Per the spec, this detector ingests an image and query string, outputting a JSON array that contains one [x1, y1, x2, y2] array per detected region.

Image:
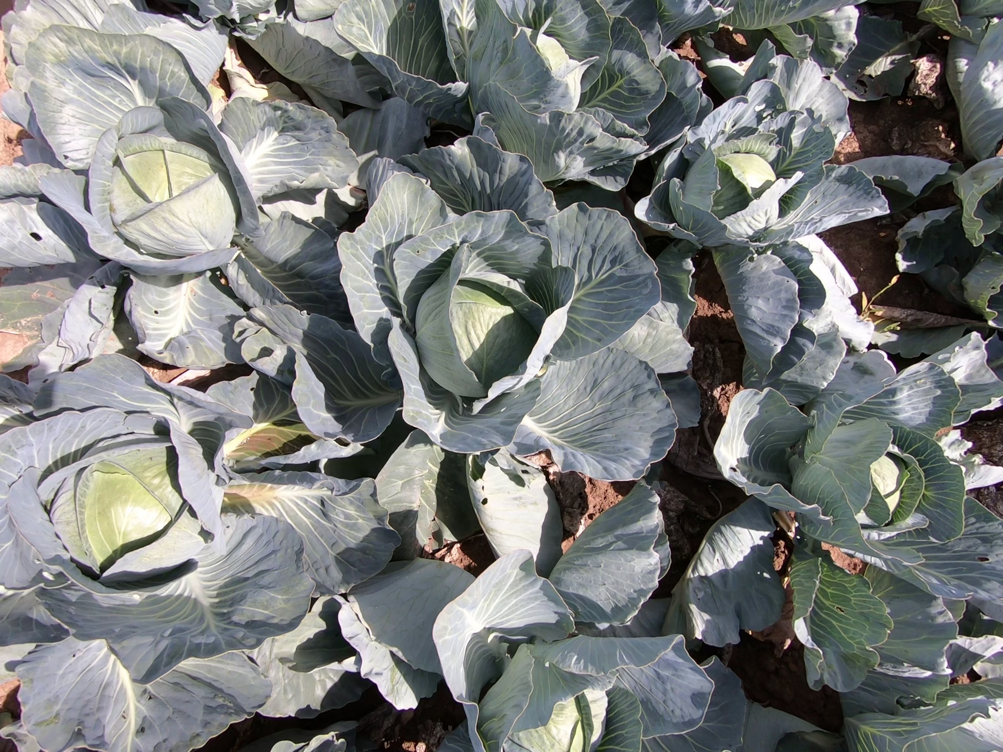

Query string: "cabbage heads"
[[488, 642, 612, 750], [417, 269, 541, 395], [817, 446, 906, 532], [477, 26, 581, 131], [694, 148, 779, 243], [105, 137, 238, 255], [50, 433, 206, 580]]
